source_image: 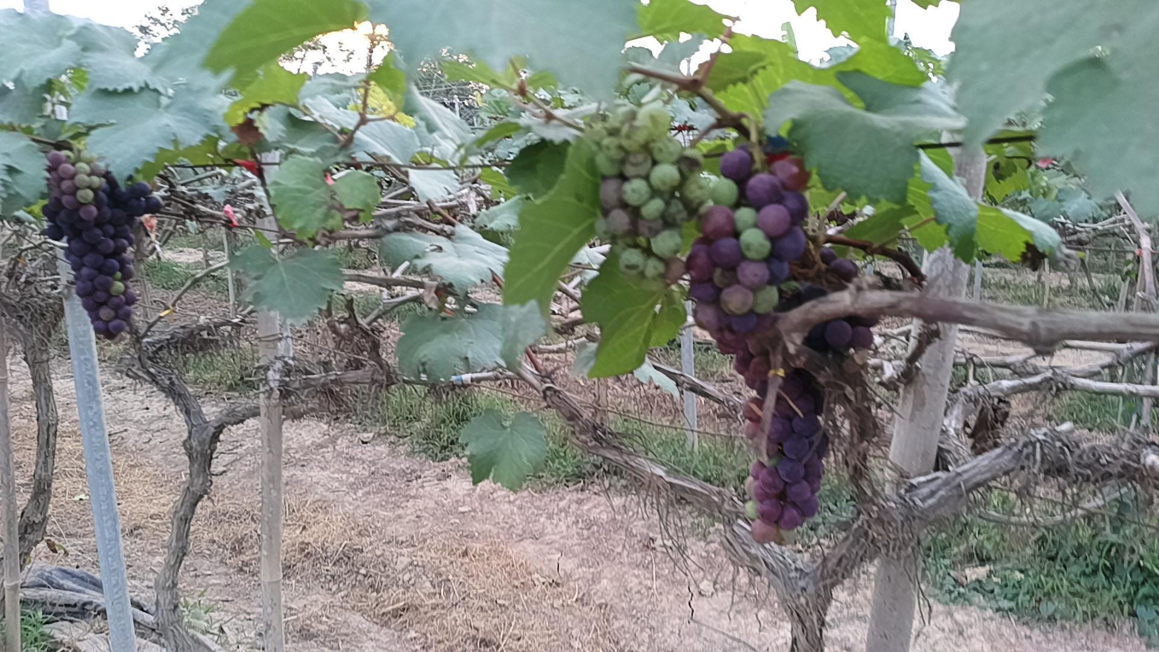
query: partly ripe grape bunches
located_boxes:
[688,145,877,544]
[570,101,738,289]
[42,151,162,340]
